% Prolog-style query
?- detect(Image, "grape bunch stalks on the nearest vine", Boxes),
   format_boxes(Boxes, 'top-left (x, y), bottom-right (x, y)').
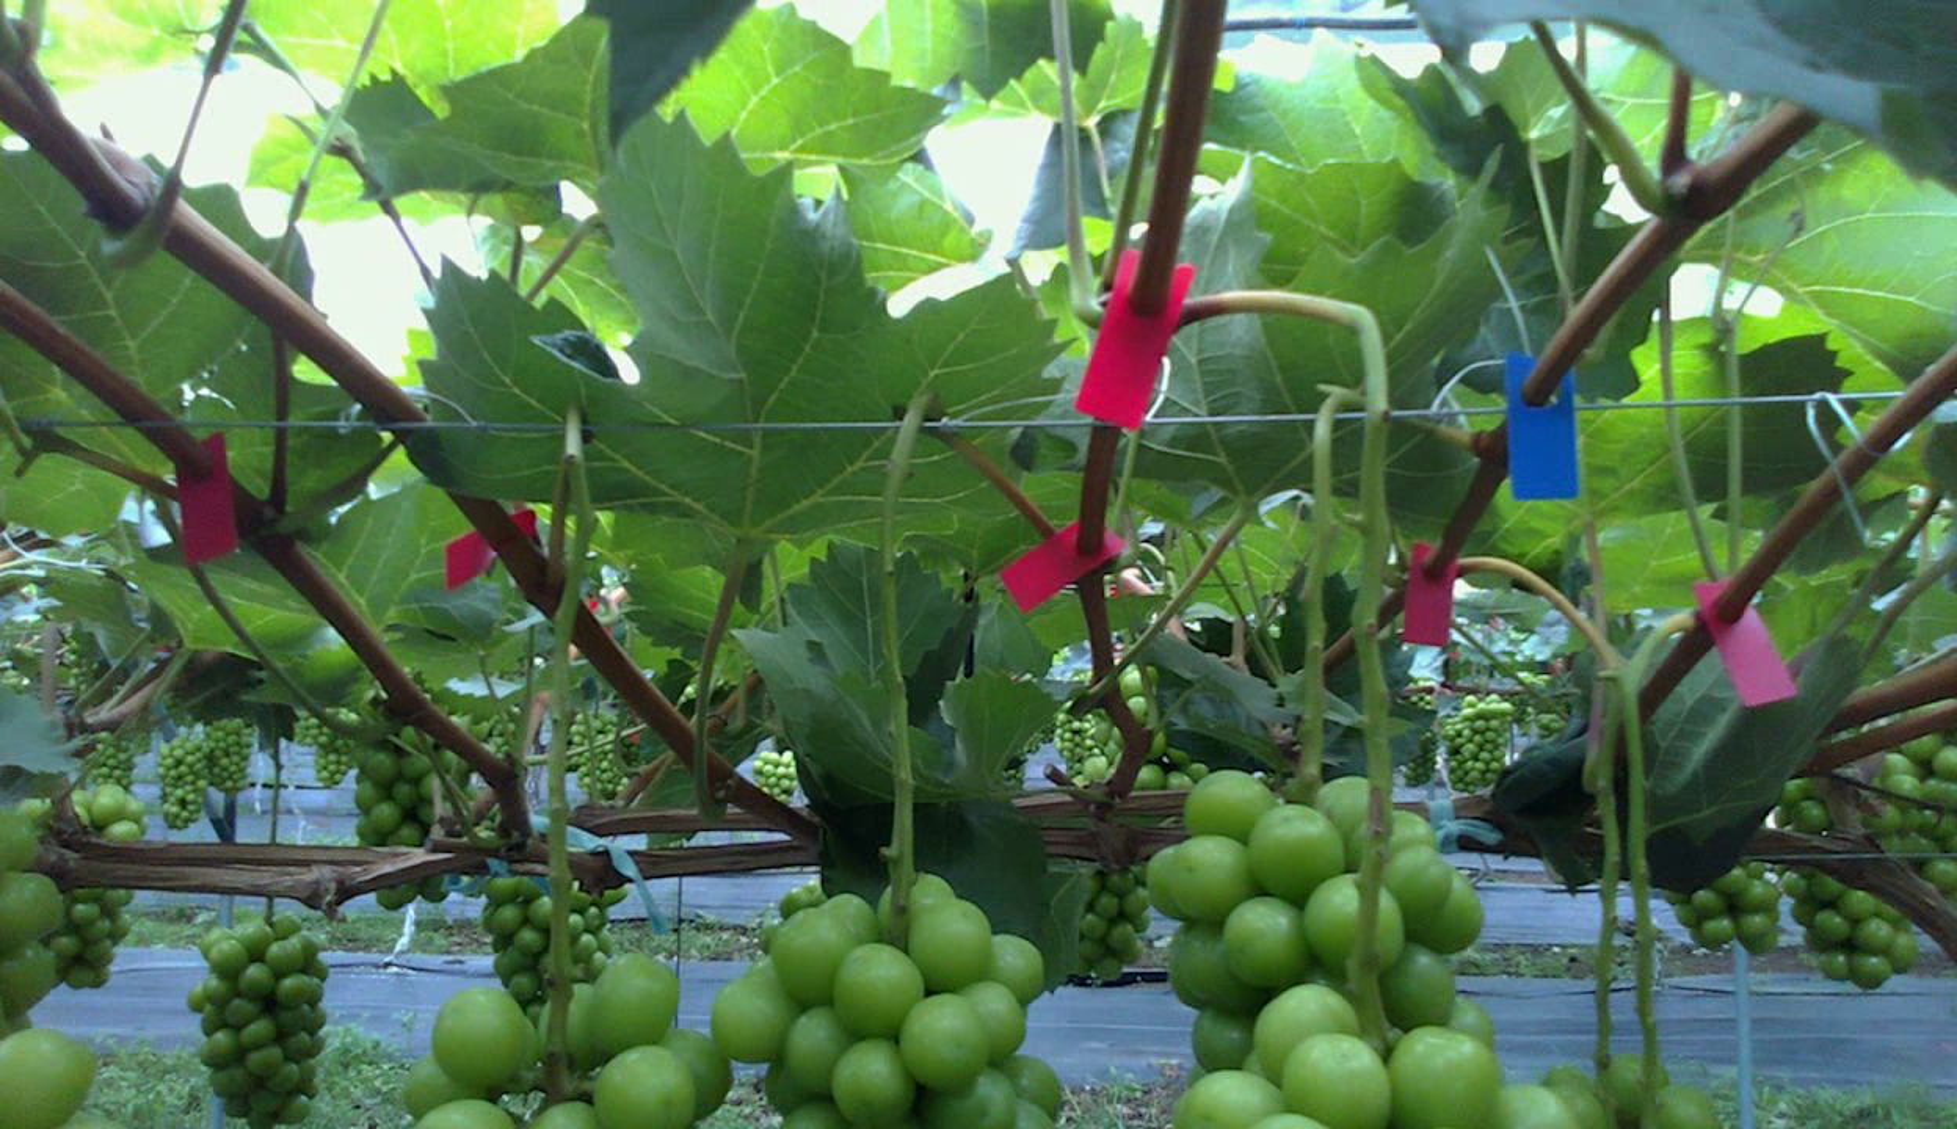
top-left (544, 408), bottom-right (597, 1107)
top-left (878, 394), bottom-right (939, 957)
top-left (1196, 290), bottom-right (1394, 1046)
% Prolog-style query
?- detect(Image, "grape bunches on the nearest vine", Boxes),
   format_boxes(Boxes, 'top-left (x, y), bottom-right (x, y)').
top-left (713, 877), bottom-right (1065, 1127)
top-left (398, 950), bottom-right (732, 1127)
top-left (1176, 985), bottom-right (1574, 1124)
top-left (1145, 765), bottom-right (1493, 1077)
